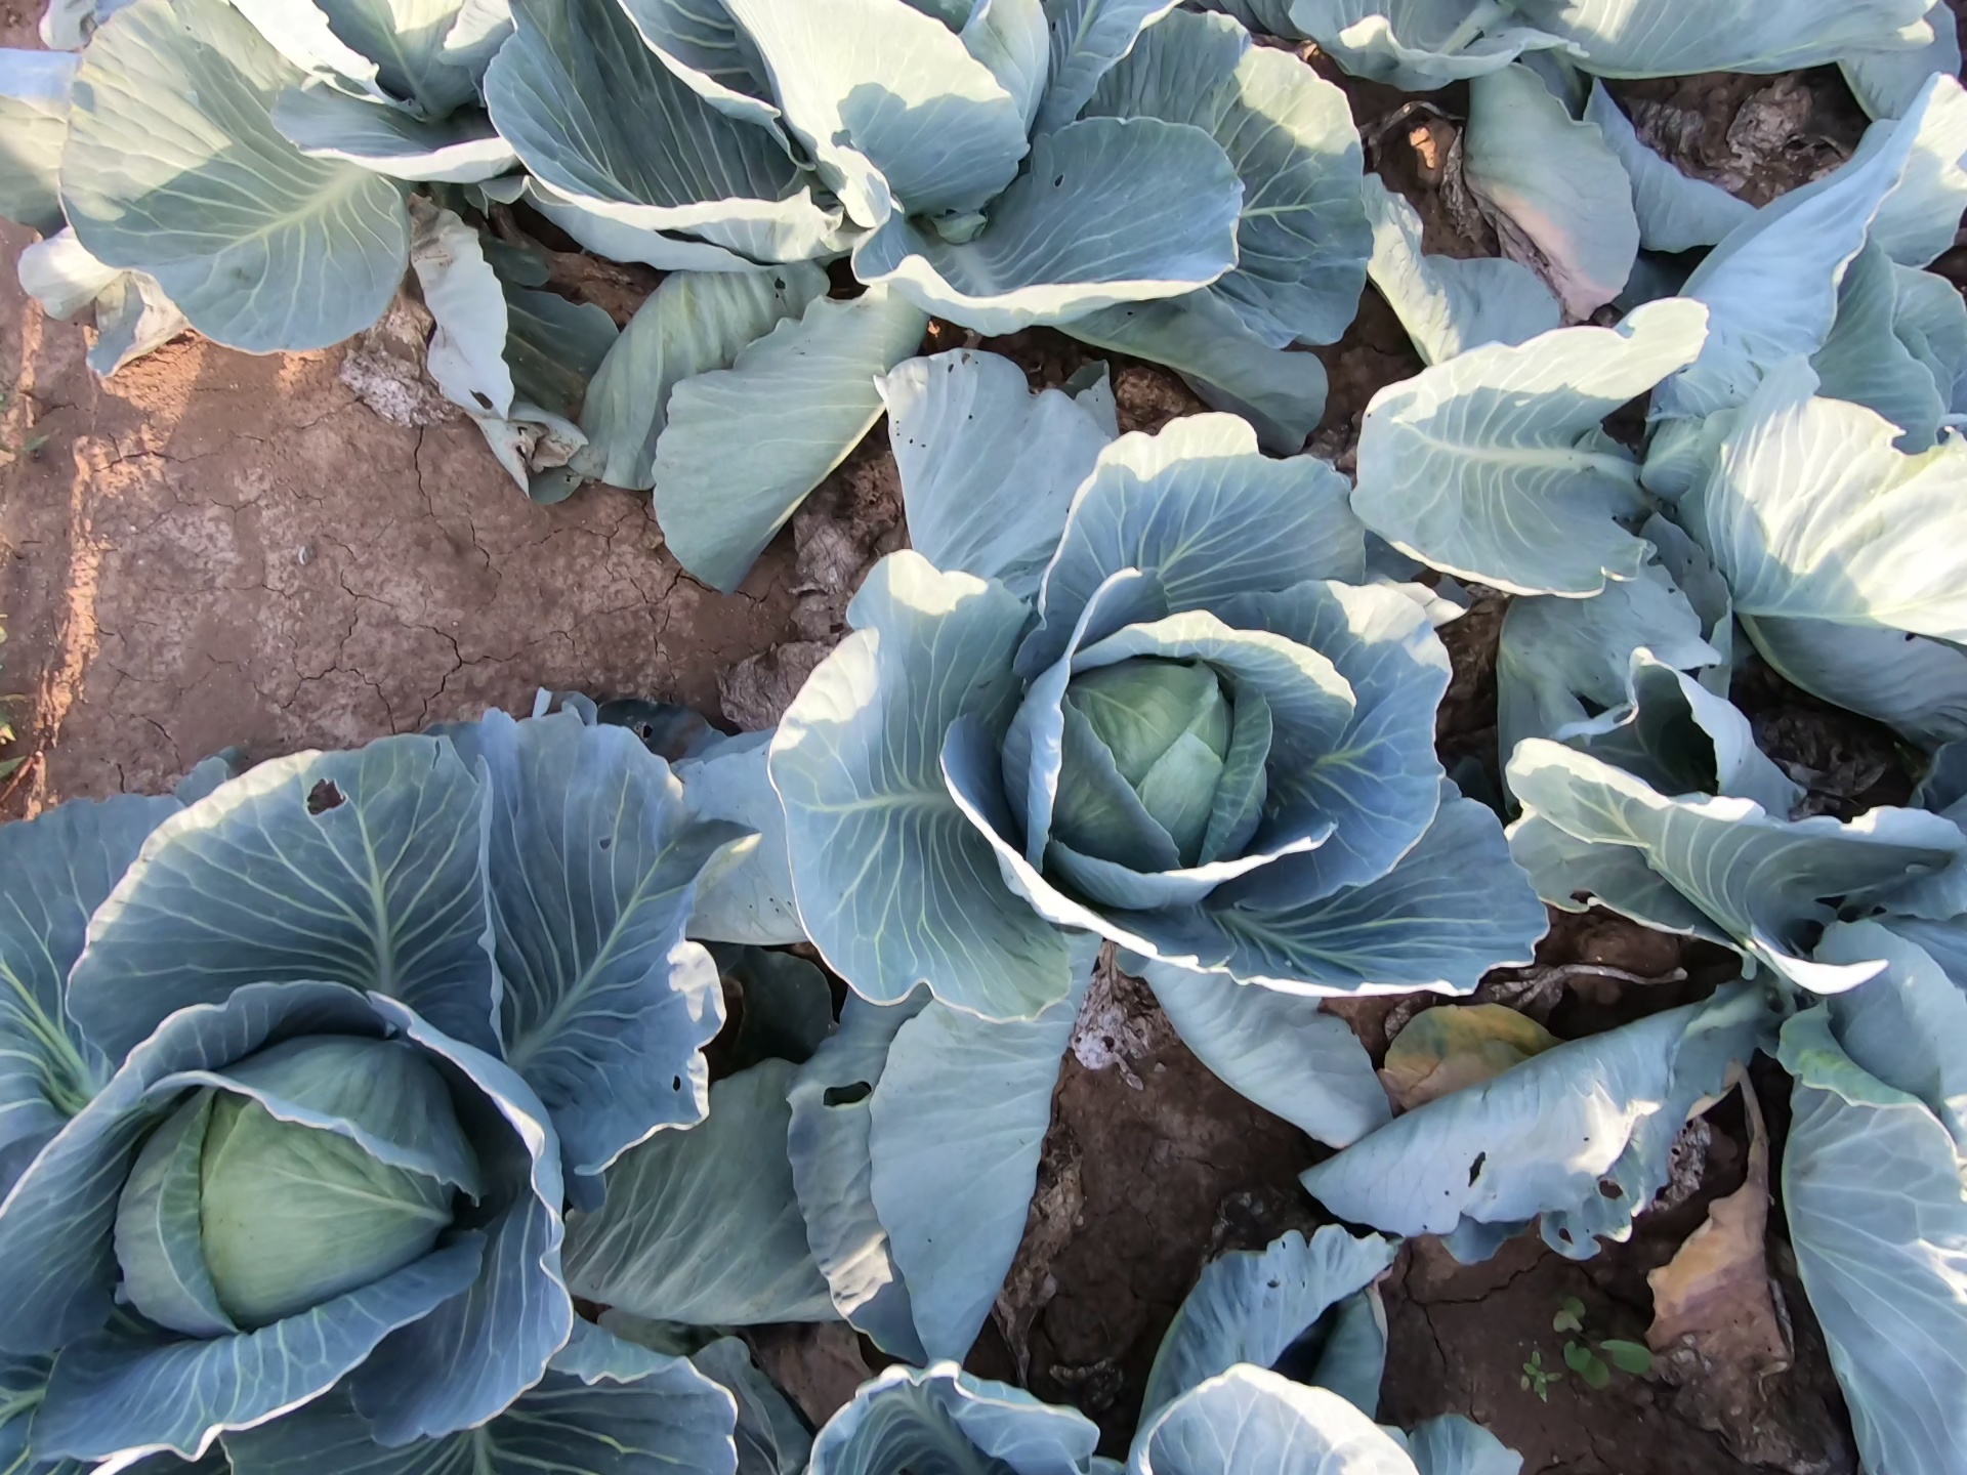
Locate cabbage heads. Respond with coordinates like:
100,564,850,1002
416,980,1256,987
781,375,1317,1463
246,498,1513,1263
115,1045,464,1335
1032,661,1270,882
806,2,1030,159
